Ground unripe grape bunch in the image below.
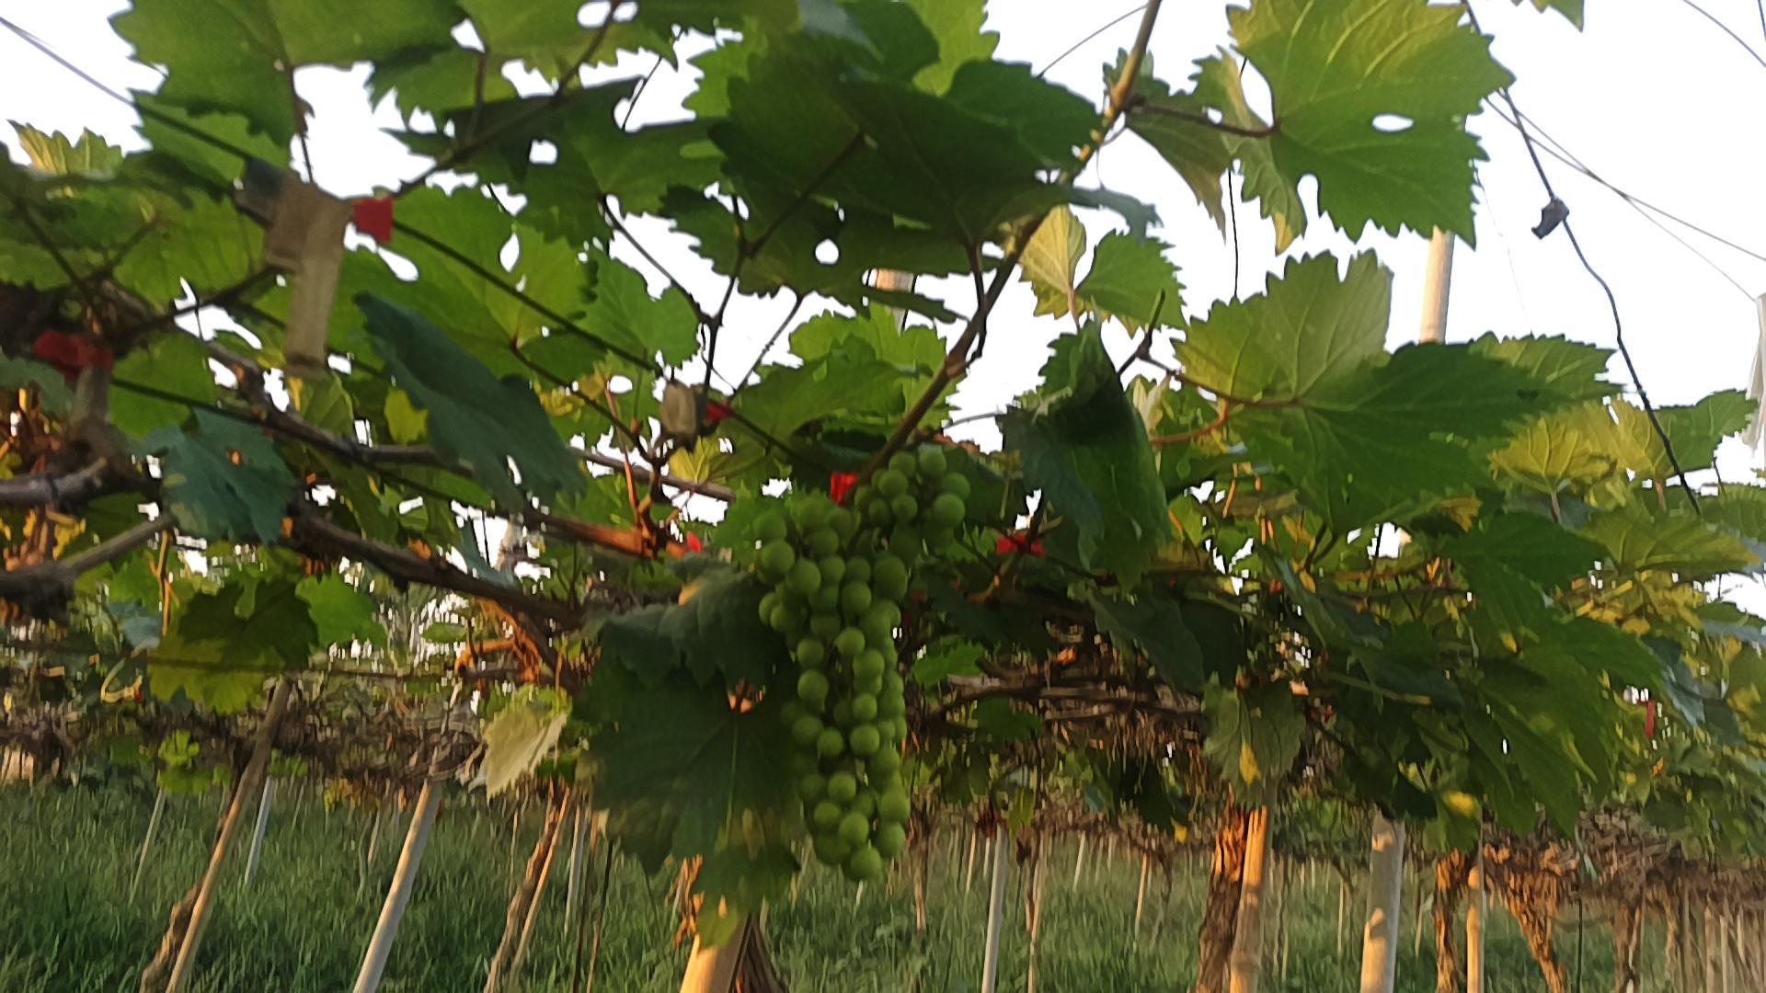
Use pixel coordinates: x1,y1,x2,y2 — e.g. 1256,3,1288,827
745,444,969,880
